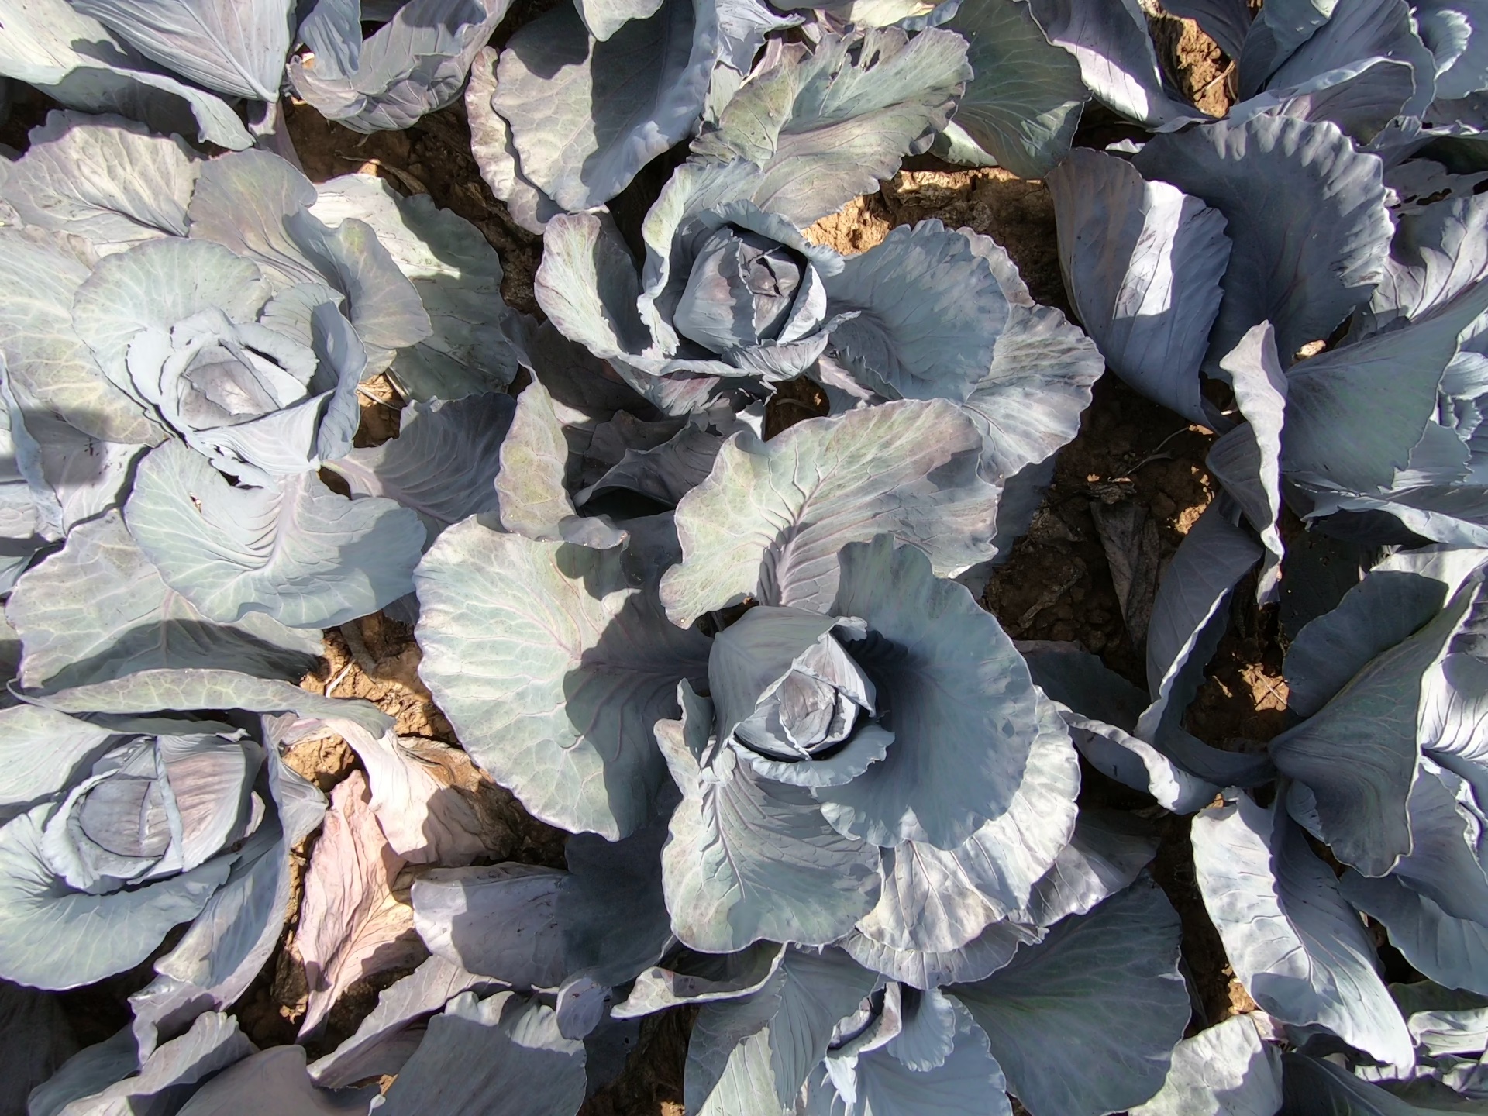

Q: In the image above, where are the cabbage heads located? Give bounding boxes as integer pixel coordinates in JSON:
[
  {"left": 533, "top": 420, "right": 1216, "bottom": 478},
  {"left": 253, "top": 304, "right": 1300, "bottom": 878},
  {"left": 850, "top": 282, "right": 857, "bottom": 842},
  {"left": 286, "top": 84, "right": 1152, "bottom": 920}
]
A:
[
  {"left": 175, "top": 340, "right": 318, "bottom": 467},
  {"left": 691, "top": 230, "right": 823, "bottom": 350},
  {"left": 776, "top": 937, "right": 900, "bottom": 1053},
  {"left": 68, "top": 729, "right": 246, "bottom": 879},
  {"left": 1305, "top": 374, "right": 1442, "bottom": 494},
  {"left": 1322, "top": 747, "right": 1486, "bottom": 883},
  {"left": 712, "top": 613, "right": 867, "bottom": 761}
]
